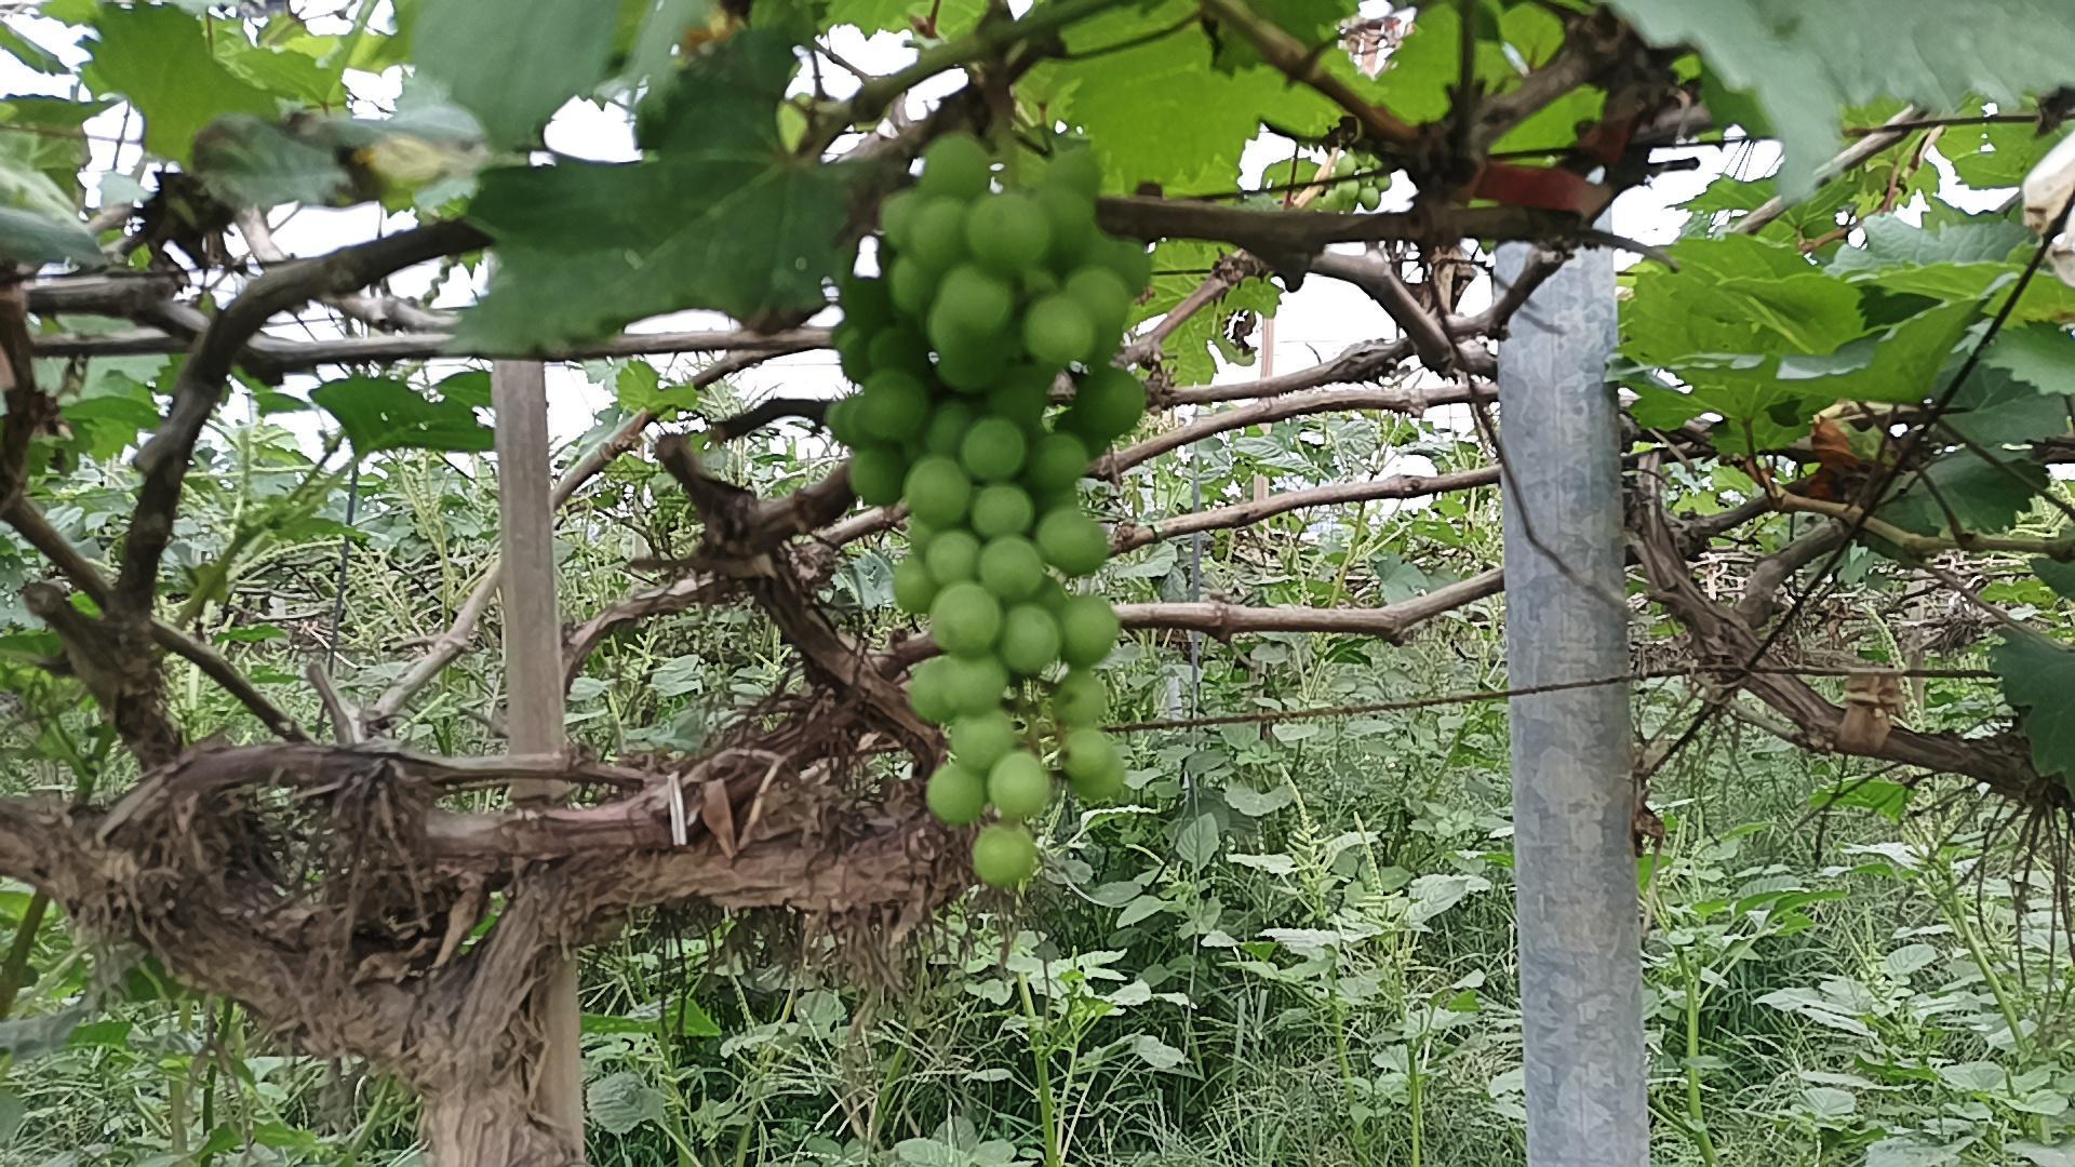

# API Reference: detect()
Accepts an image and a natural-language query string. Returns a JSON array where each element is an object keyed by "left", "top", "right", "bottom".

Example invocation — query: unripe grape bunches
[
  {"left": 830, "top": 133, "right": 1149, "bottom": 884},
  {"left": 1314, "top": 150, "right": 1392, "bottom": 215}
]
